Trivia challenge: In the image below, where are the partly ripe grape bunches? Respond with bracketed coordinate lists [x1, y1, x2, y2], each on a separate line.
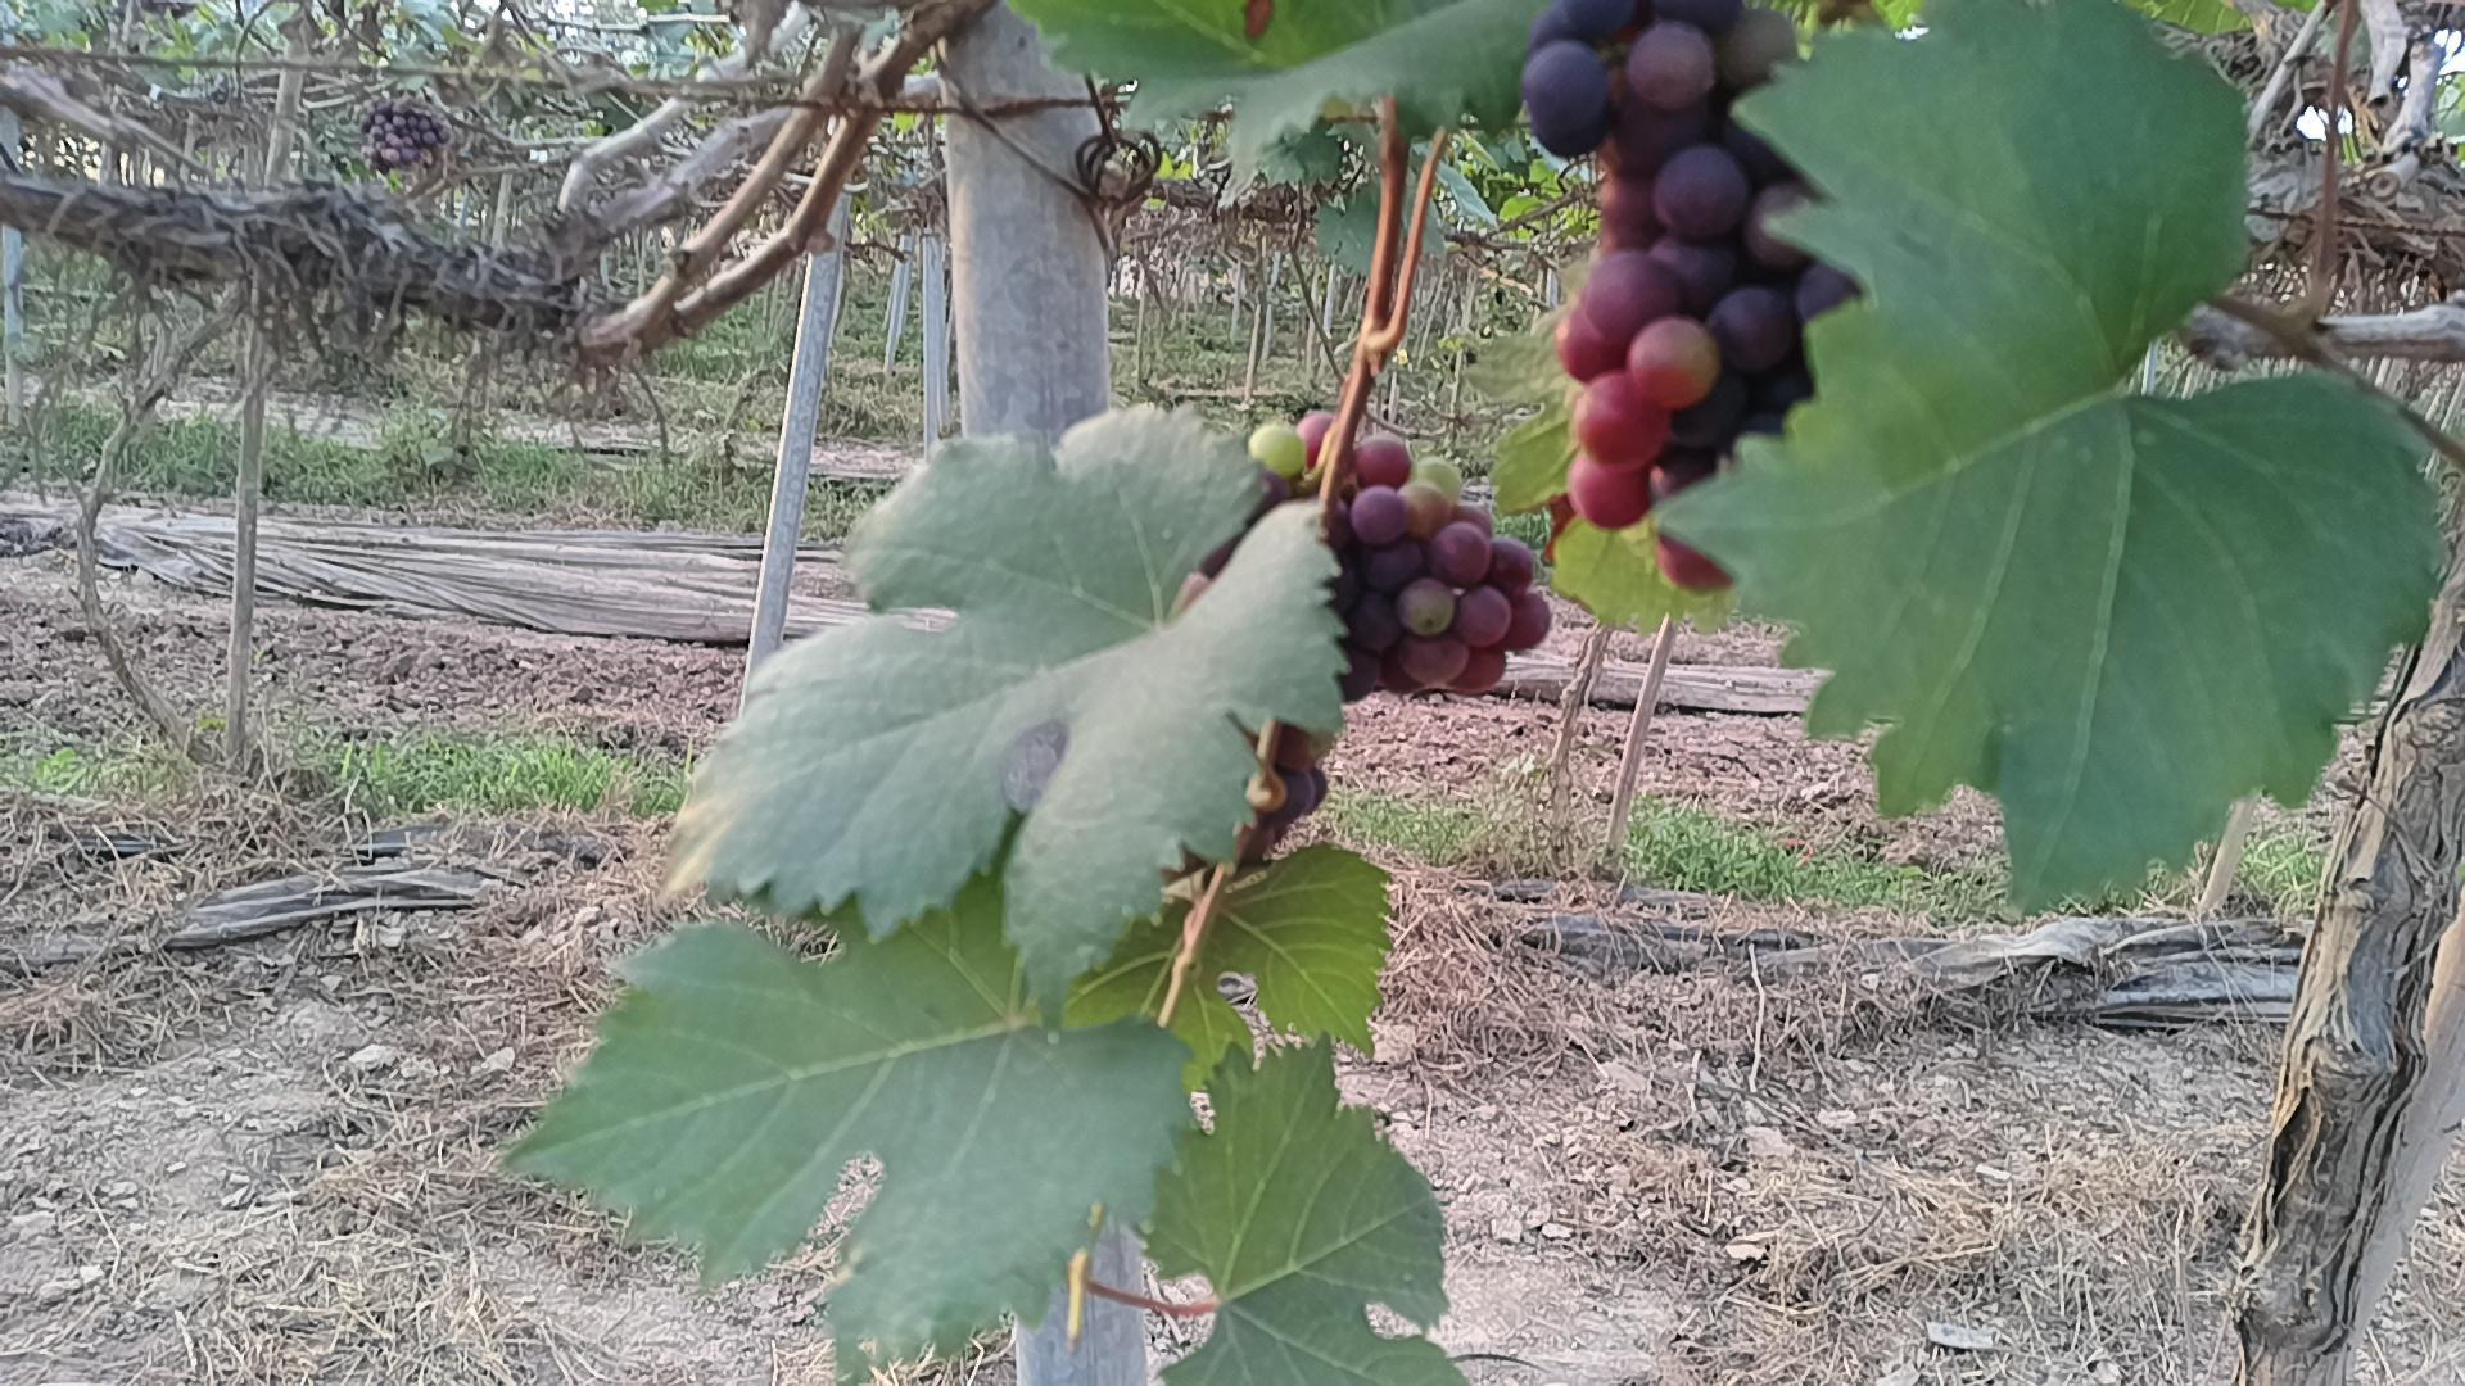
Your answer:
[1198, 408, 1550, 874]
[1523, 0, 1856, 593]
